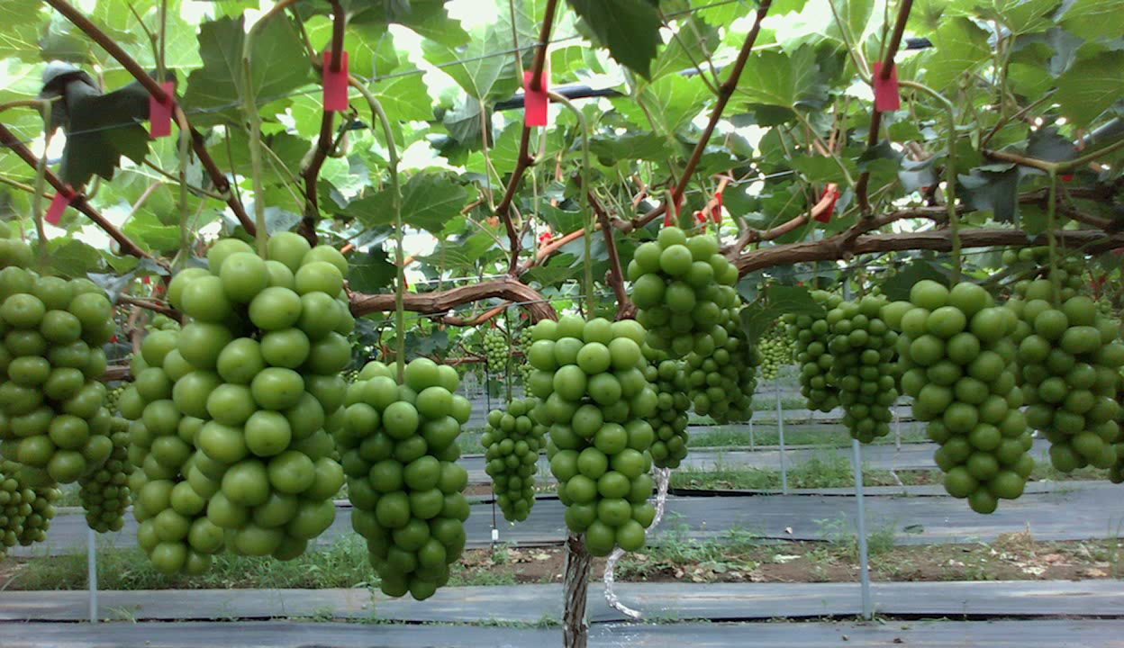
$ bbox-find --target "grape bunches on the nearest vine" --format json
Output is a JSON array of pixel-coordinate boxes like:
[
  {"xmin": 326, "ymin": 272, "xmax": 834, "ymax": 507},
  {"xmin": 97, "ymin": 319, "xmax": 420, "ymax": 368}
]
[
  {"xmin": 1, "ymin": 238, "xmax": 116, "ymax": 489},
  {"xmin": 1002, "ymin": 280, "xmax": 1123, "ymax": 474},
  {"xmin": 528, "ymin": 314, "xmax": 657, "ymax": 557},
  {"xmin": 166, "ymin": 231, "xmax": 358, "ymax": 562},
  {"xmin": 628, "ymin": 227, "xmax": 739, "ymax": 360},
  {"xmin": 117, "ymin": 329, "xmax": 224, "ymax": 577},
  {"xmin": 884, "ymin": 280, "xmax": 1034, "ymax": 514},
  {"xmin": 332, "ymin": 358, "xmax": 472, "ymax": 601}
]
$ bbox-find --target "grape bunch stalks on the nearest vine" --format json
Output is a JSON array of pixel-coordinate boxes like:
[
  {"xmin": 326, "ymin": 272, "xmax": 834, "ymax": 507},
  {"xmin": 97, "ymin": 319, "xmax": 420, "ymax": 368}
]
[
  {"xmin": 645, "ymin": 188, "xmax": 680, "ymax": 229},
  {"xmin": 992, "ymin": 149, "xmax": 1063, "ymax": 310},
  {"xmin": 898, "ymin": 79, "xmax": 962, "ymax": 288},
  {"xmin": 349, "ymin": 75, "xmax": 404, "ymax": 383},
  {"xmin": 175, "ymin": 102, "xmax": 193, "ymax": 267},
  {"xmin": 0, "ymin": 99, "xmax": 52, "ymax": 274},
  {"xmin": 240, "ymin": 0, "xmax": 295, "ymax": 258},
  {"xmin": 547, "ymin": 90, "xmax": 595, "ymax": 321}
]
